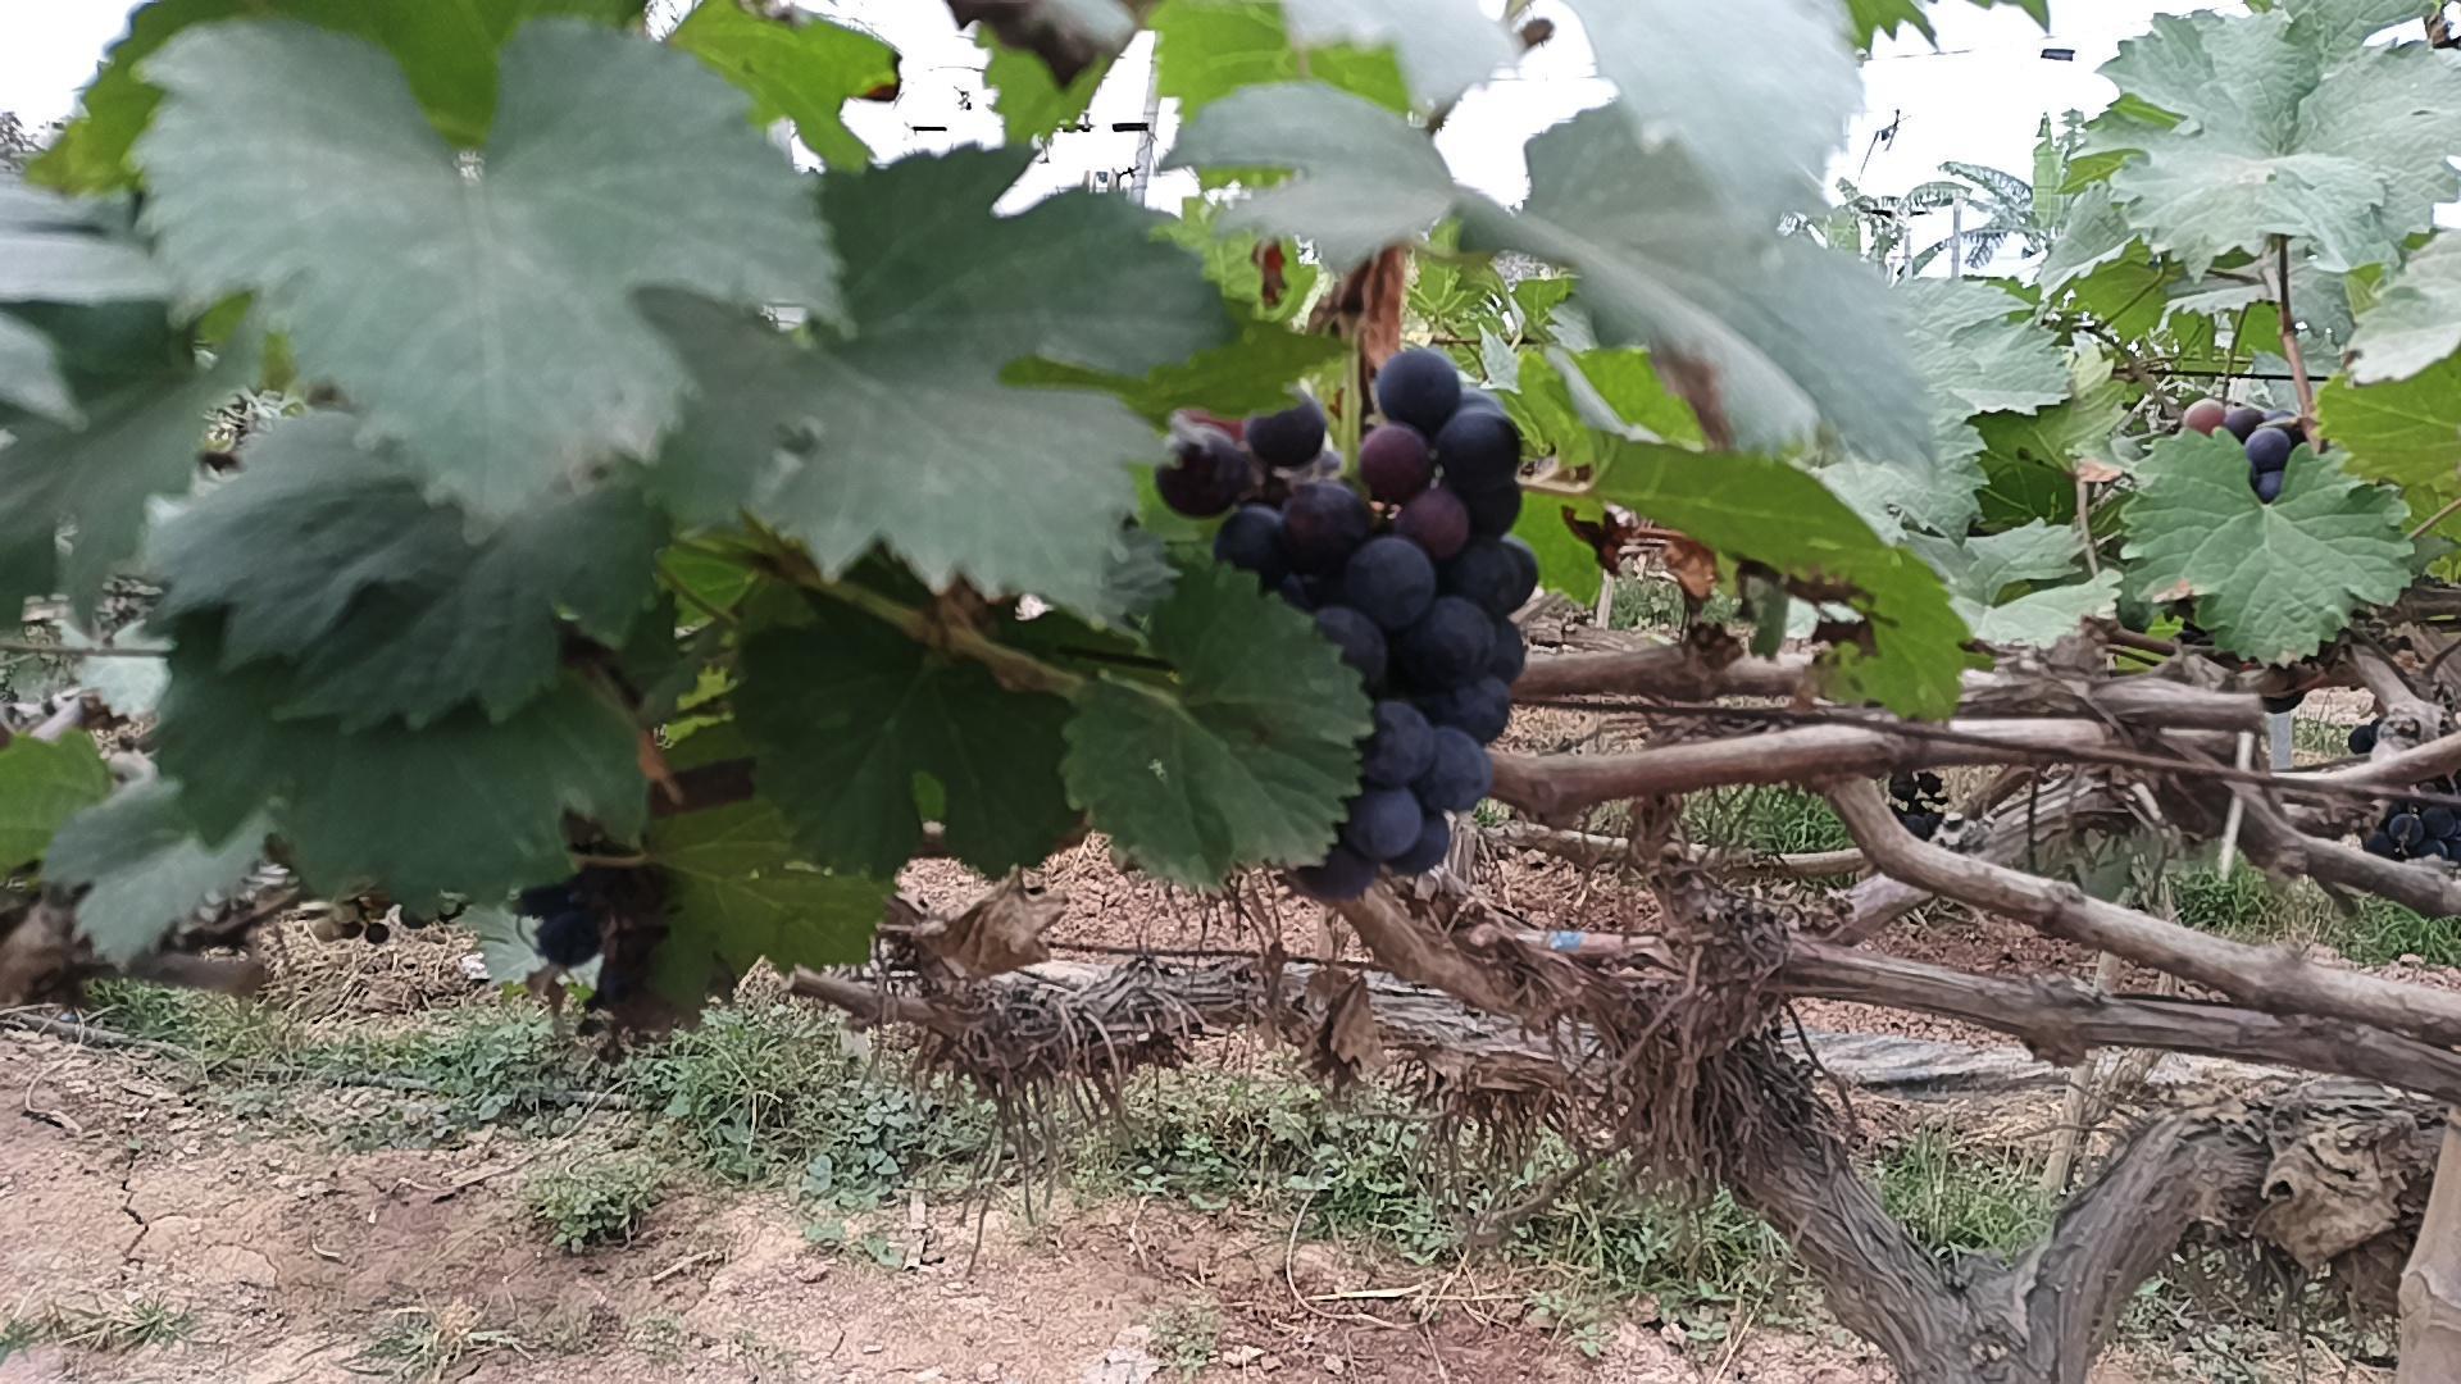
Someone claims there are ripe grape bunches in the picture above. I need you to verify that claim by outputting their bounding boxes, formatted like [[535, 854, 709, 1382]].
[[2179, 397, 2310, 504], [1889, 771, 1947, 839], [2347, 716, 2460, 868], [514, 862, 670, 1009], [1156, 347, 1536, 902]]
